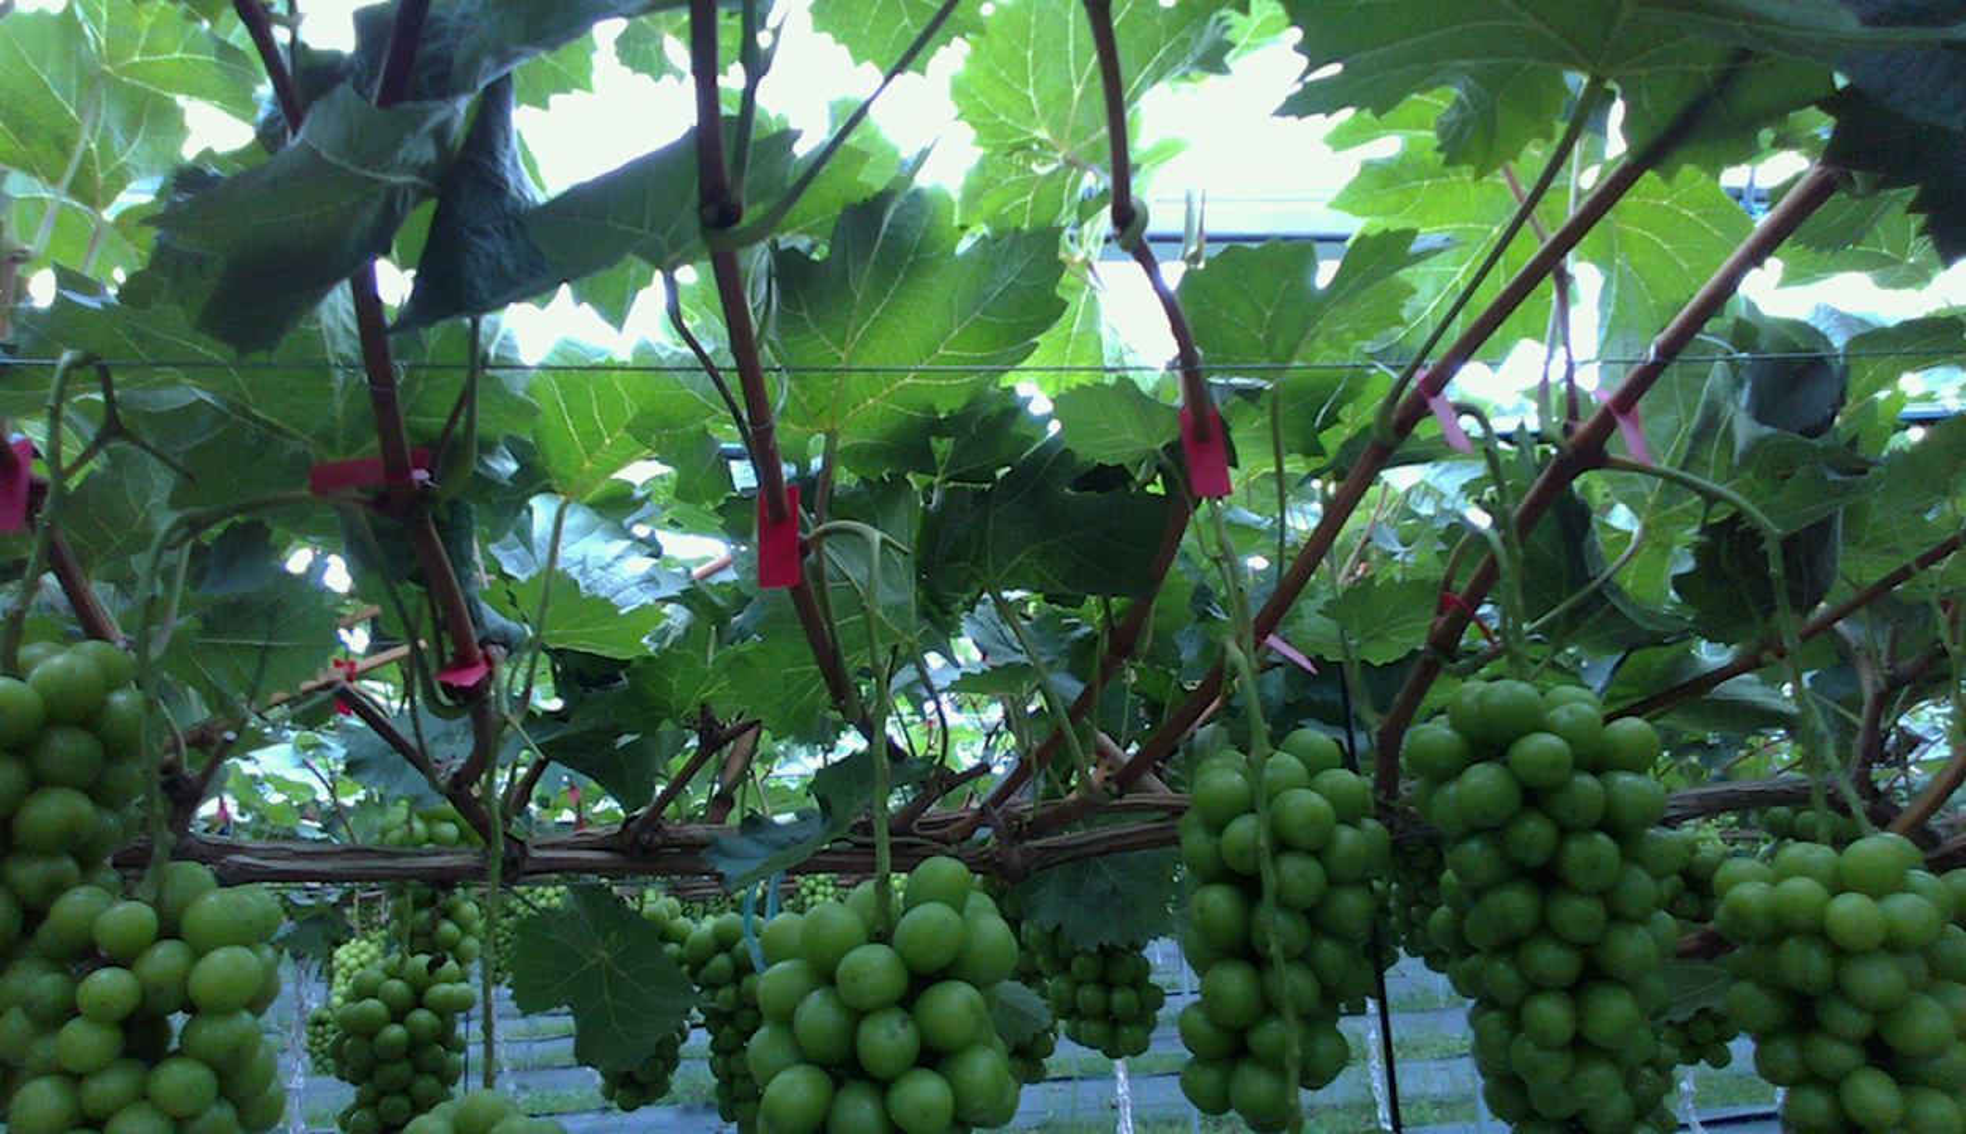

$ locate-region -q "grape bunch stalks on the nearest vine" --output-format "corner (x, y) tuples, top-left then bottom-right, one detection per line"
(1608, 452), (1832, 844)
(810, 520), (907, 943)
(129, 493), (373, 906)
(1210, 499), (1259, 684)
(1449, 398), (1531, 680)
(3, 350), (198, 677)
(479, 641), (510, 1090)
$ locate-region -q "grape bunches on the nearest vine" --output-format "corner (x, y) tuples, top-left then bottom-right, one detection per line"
(1405, 680), (1682, 1132)
(747, 857), (1015, 1132)
(0, 862), (288, 1132)
(1177, 728), (1391, 1132)
(405, 1091), (567, 1132)
(1712, 833), (1964, 1132)
(0, 639), (142, 961)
